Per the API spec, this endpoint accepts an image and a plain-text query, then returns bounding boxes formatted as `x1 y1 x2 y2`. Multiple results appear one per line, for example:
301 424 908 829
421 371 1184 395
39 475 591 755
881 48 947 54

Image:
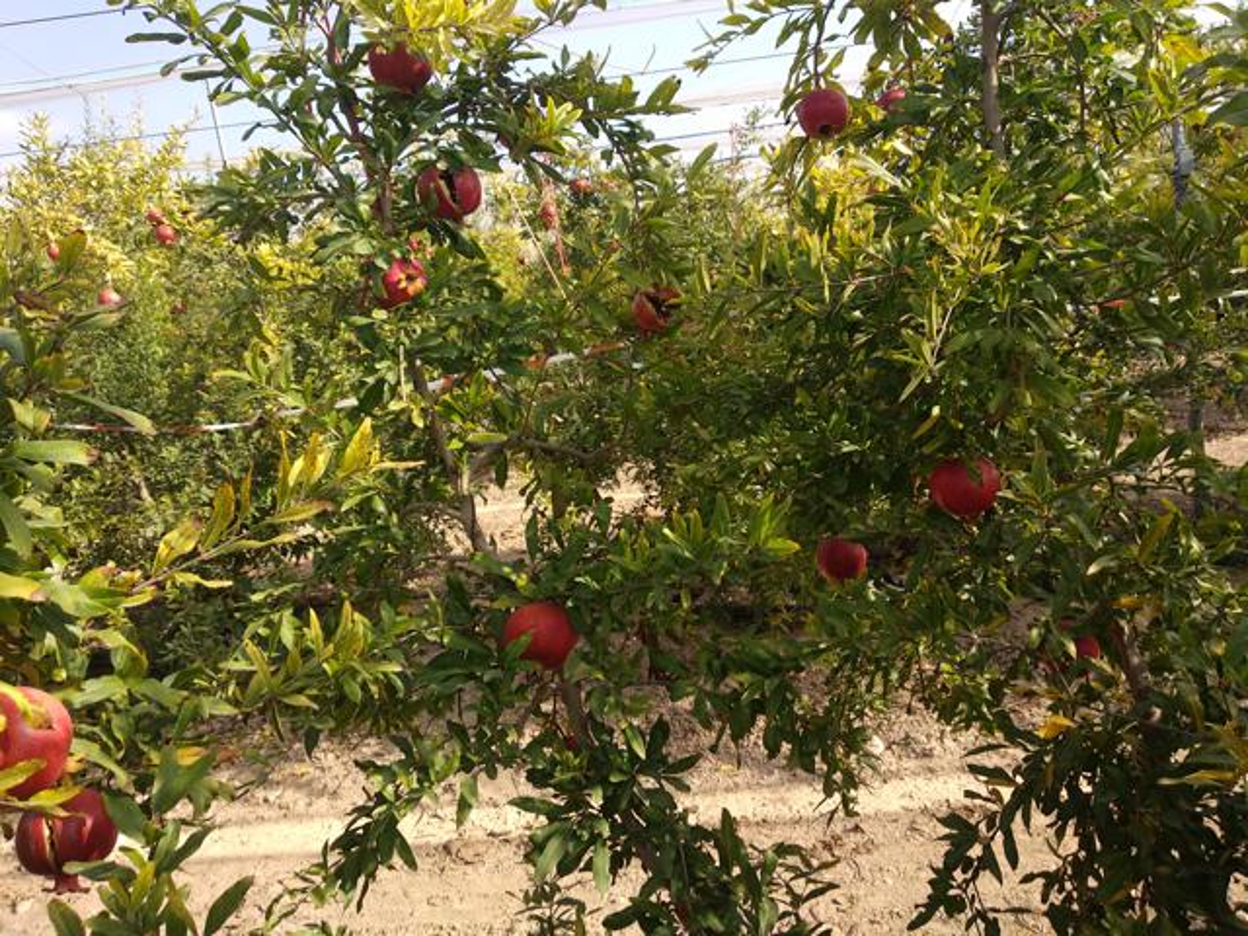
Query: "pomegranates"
499 601 579 671
369 43 431 94
144 209 164 222
930 458 1000 519
16 786 119 897
376 259 427 310
415 166 484 220
796 90 850 138
0 684 72 799
154 222 175 248
96 287 125 306
632 289 679 333
47 246 60 259
815 538 870 583
877 88 907 109
1072 634 1102 661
